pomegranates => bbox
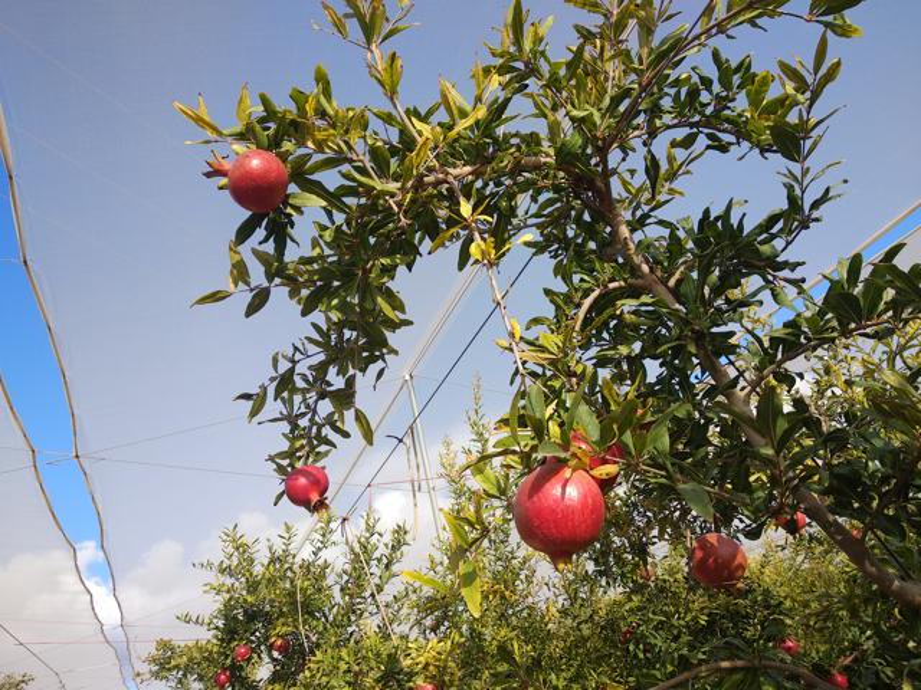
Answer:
[571,431,623,496]
[779,638,799,657]
[232,644,250,663]
[283,464,330,513]
[512,461,606,572]
[688,532,747,589]
[271,638,289,655]
[213,671,230,687]
[827,671,849,690]
[776,510,807,532]
[203,149,288,213]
